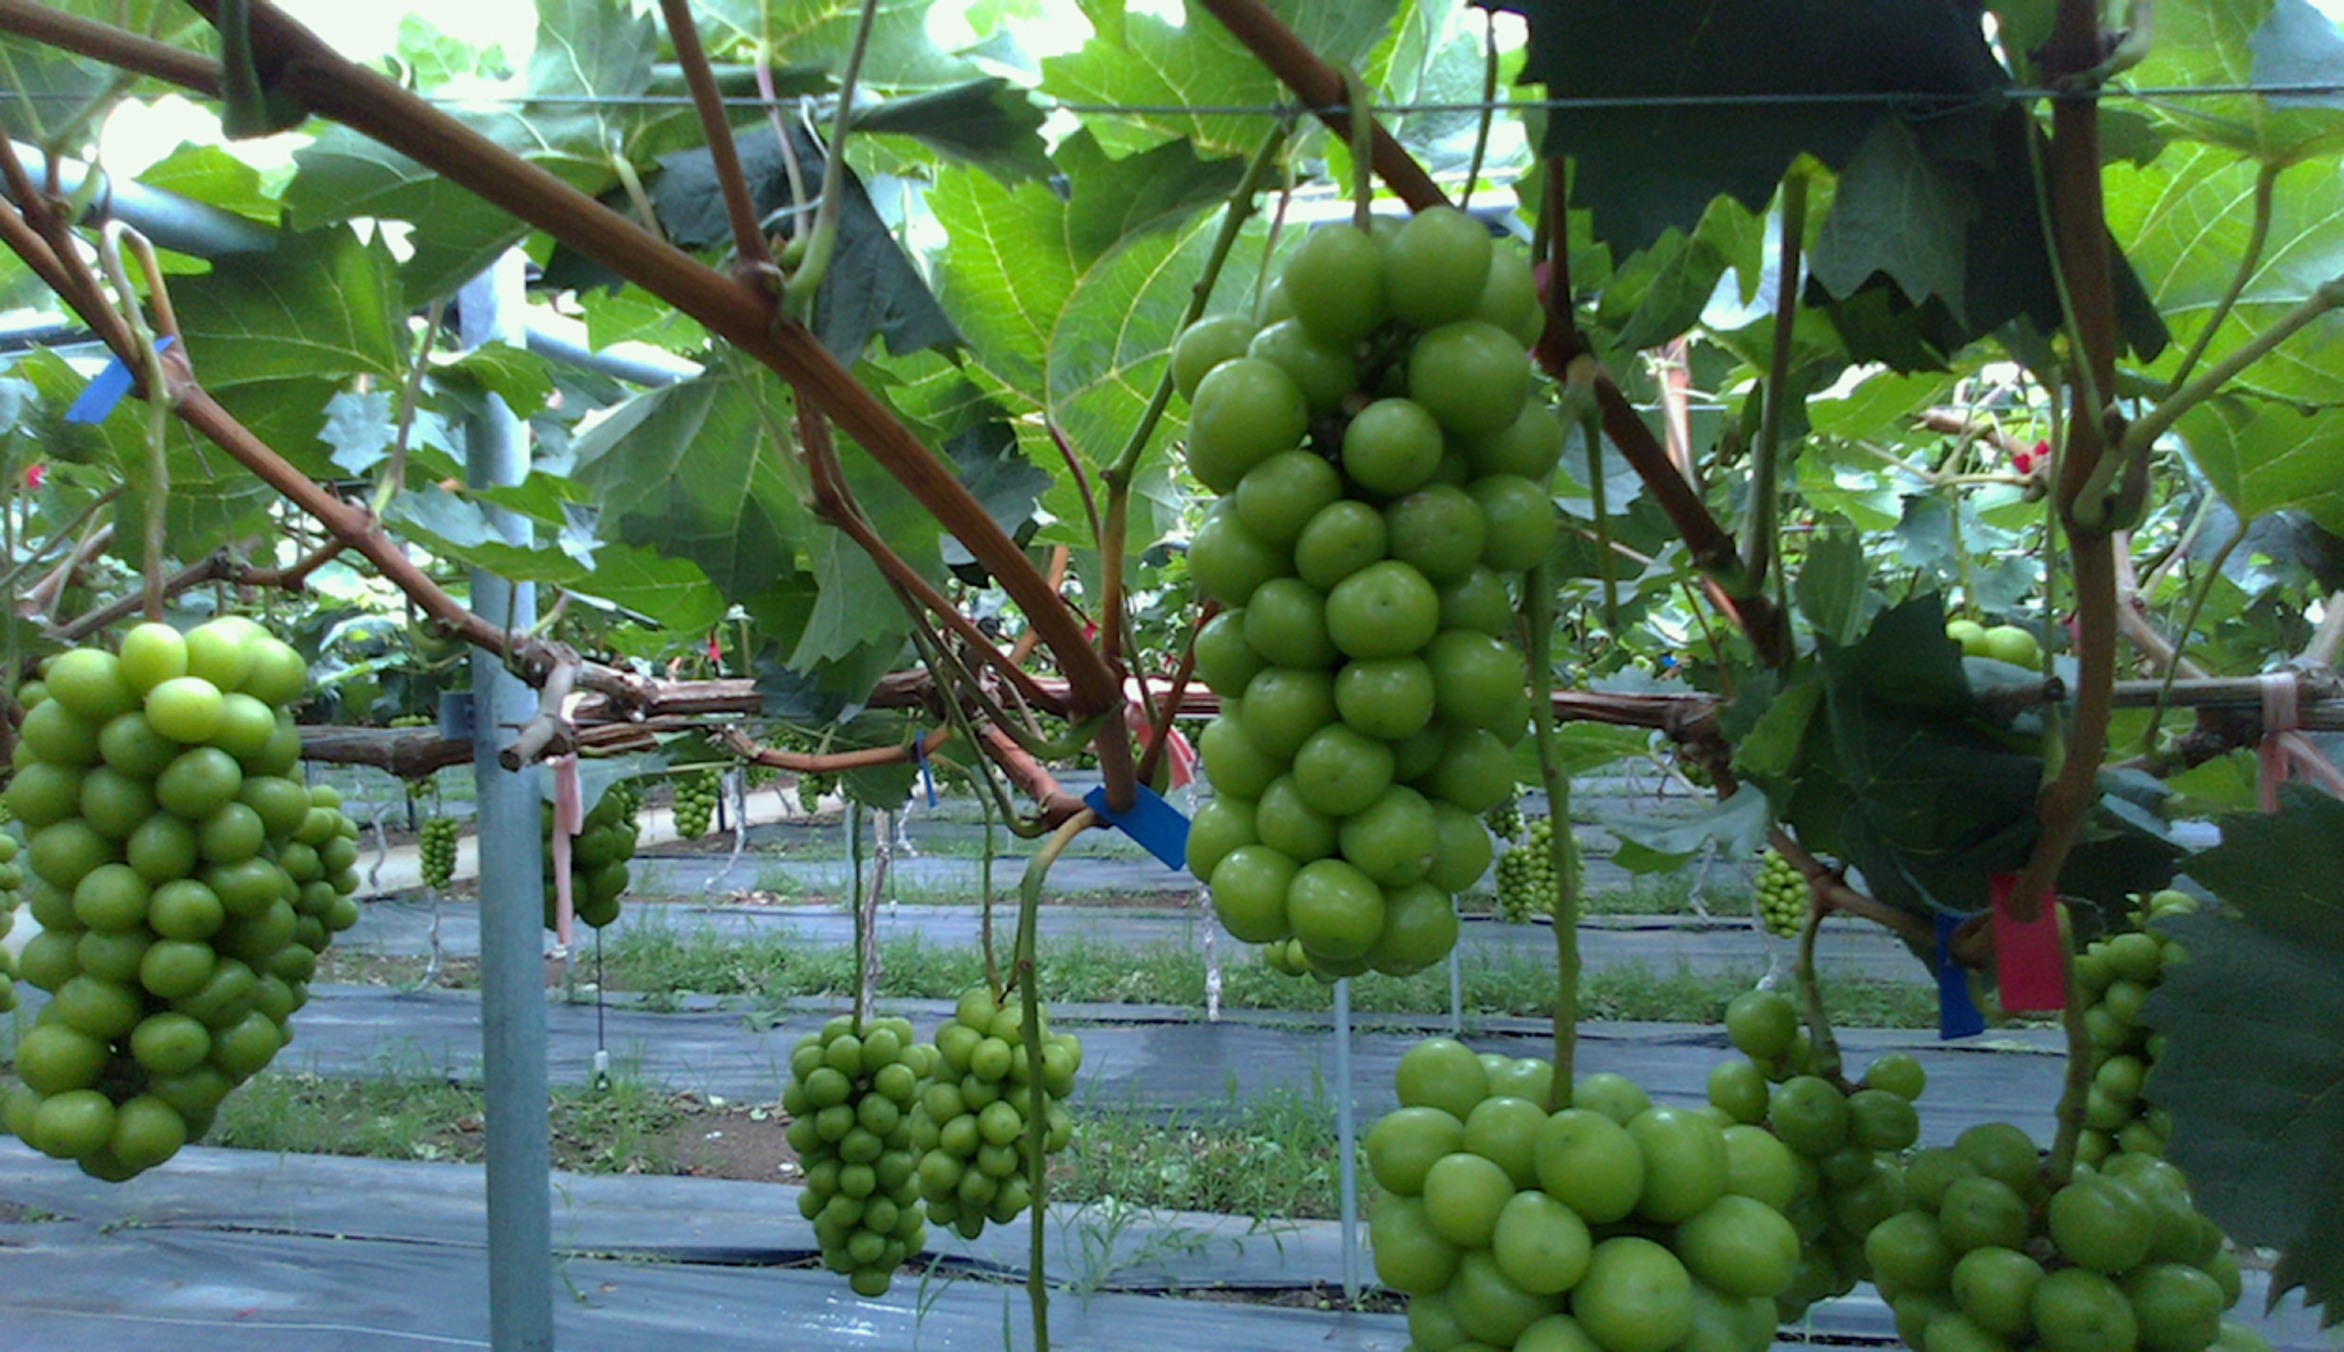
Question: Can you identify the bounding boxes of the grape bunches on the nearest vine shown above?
[1360,1040,1801,1348]
[1705,990,1927,1324]
[0,618,308,1185]
[1174,207,1561,978]
[1867,1114,2246,1350]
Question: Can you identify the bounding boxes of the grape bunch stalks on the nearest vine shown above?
[1529,575,1580,1110]
[1790,907,1844,1078]
[2045,913,2090,1200]
[100,216,180,620]
[1345,64,1373,227]
[1016,809,1097,1350]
